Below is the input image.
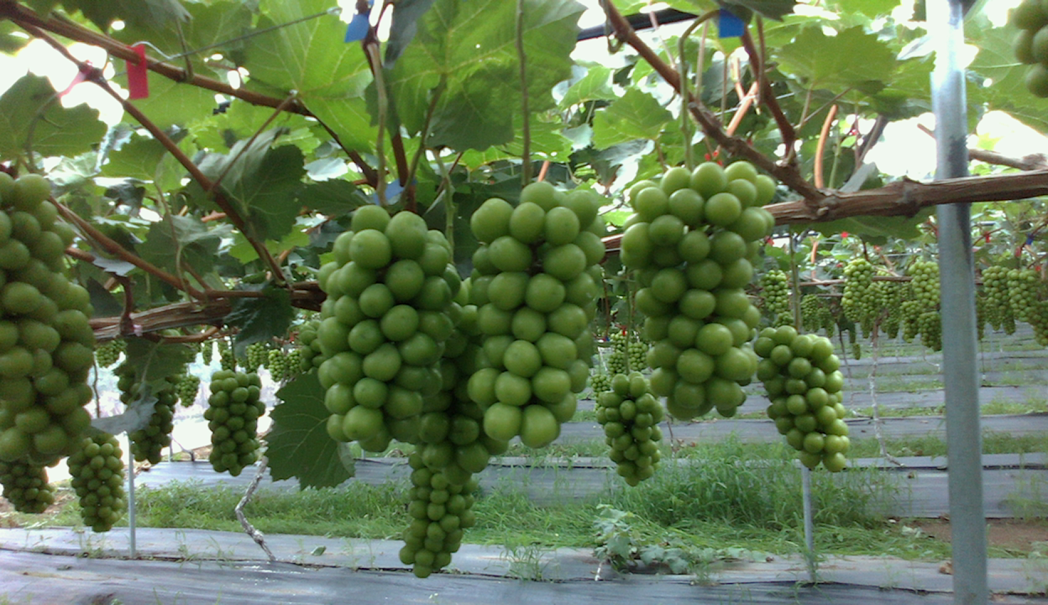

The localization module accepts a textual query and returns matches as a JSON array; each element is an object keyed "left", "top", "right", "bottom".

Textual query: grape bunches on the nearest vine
[
  {"left": 466, "top": 181, "right": 605, "bottom": 449},
  {"left": 1, "top": 170, "right": 93, "bottom": 466},
  {"left": 316, "top": 205, "right": 463, "bottom": 453},
  {"left": 621, "top": 161, "right": 777, "bottom": 420}
]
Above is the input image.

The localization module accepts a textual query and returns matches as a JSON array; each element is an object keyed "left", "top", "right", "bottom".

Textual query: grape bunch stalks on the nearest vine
[
  {"left": 514, "top": 1, "right": 530, "bottom": 189},
  {"left": 427, "top": 150, "right": 454, "bottom": 245},
  {"left": 364, "top": 41, "right": 389, "bottom": 207},
  {"left": 677, "top": 8, "right": 721, "bottom": 170}
]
